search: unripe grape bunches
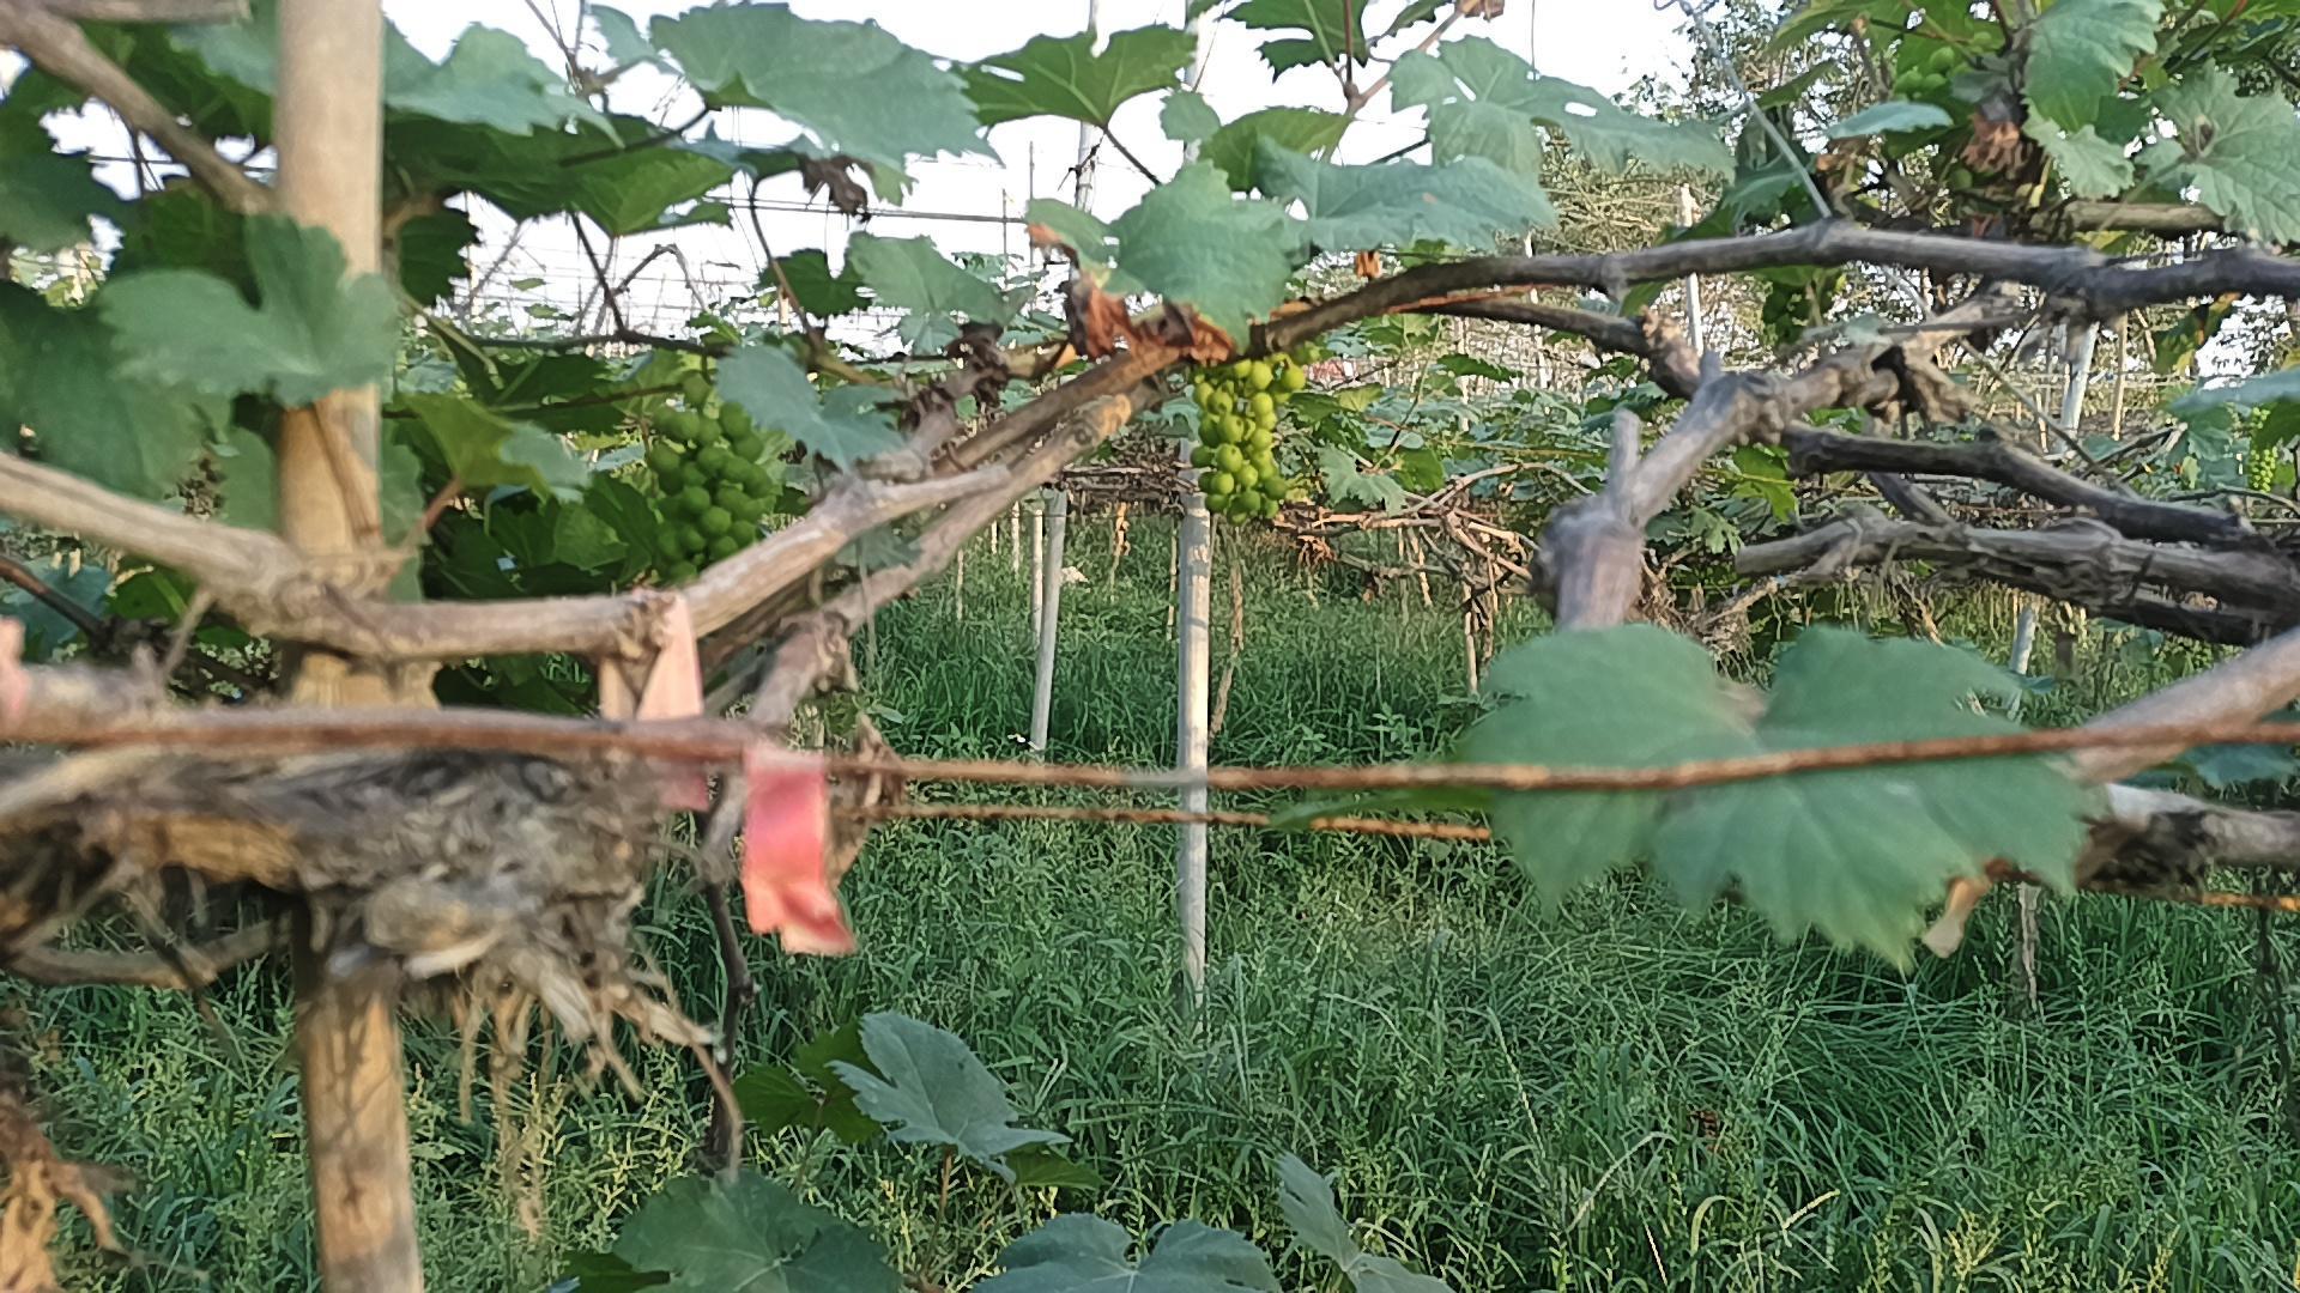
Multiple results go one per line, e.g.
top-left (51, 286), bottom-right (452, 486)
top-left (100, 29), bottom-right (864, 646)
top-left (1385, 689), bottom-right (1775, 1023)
top-left (1887, 26), bottom-right (2021, 188)
top-left (644, 372), bottom-right (786, 565)
top-left (1760, 266), bottom-right (1840, 363)
top-left (1192, 346), bottom-right (1317, 522)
